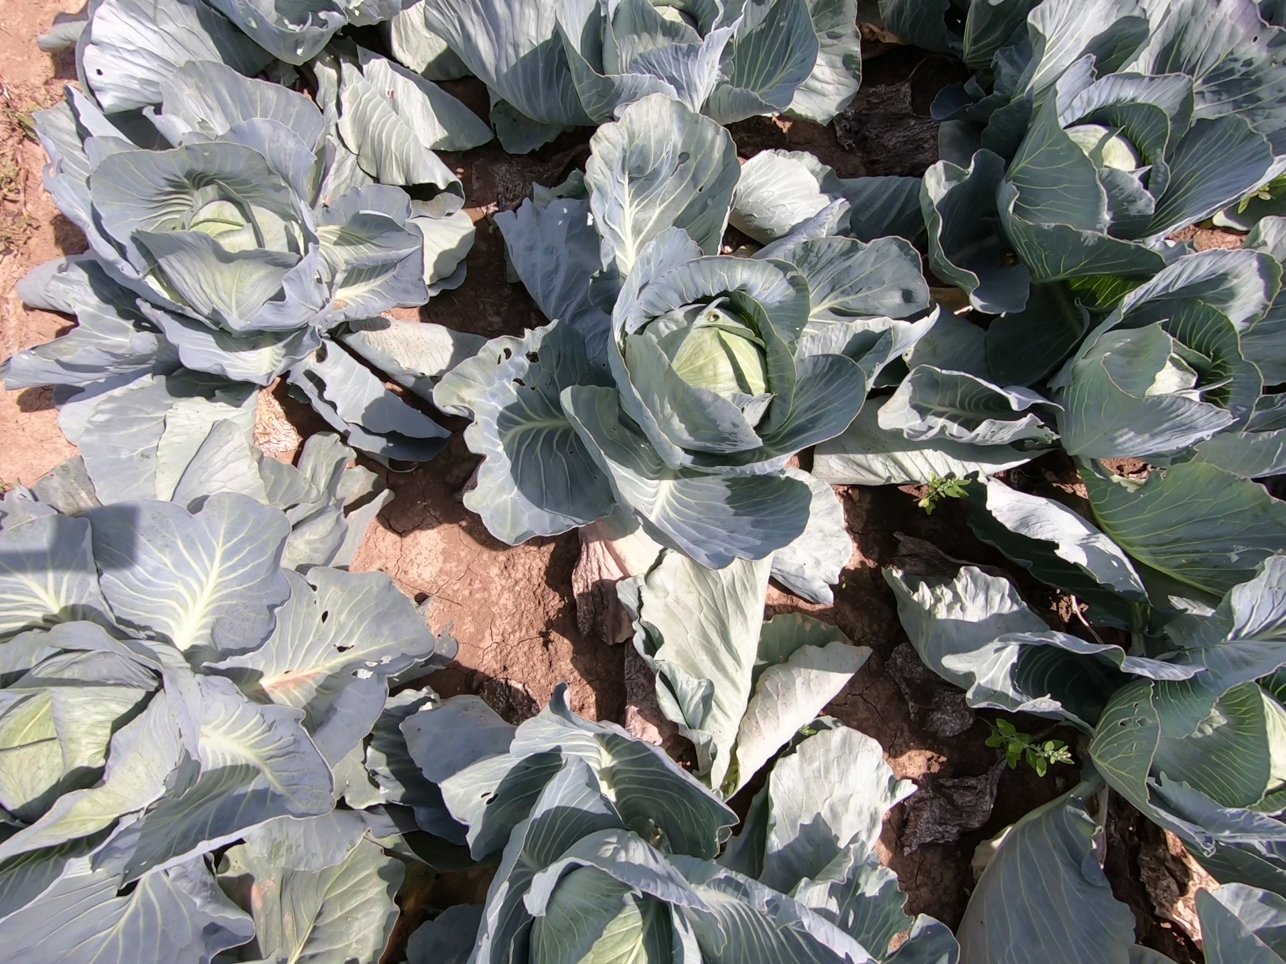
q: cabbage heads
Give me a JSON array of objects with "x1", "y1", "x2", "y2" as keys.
[
  {"x1": 1029, "y1": 120, "x2": 1147, "y2": 227},
  {"x1": 615, "y1": 3, "x2": 709, "y2": 91},
  {"x1": 1072, "y1": 333, "x2": 1196, "y2": 457},
  {"x1": 1122, "y1": 668, "x2": 1284, "y2": 813},
  {"x1": 530, "y1": 861, "x2": 697, "y2": 959},
  {"x1": 180, "y1": 199, "x2": 303, "y2": 303},
  {"x1": 1, "y1": 651, "x2": 185, "y2": 837},
  {"x1": 624, "y1": 303, "x2": 773, "y2": 444}
]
